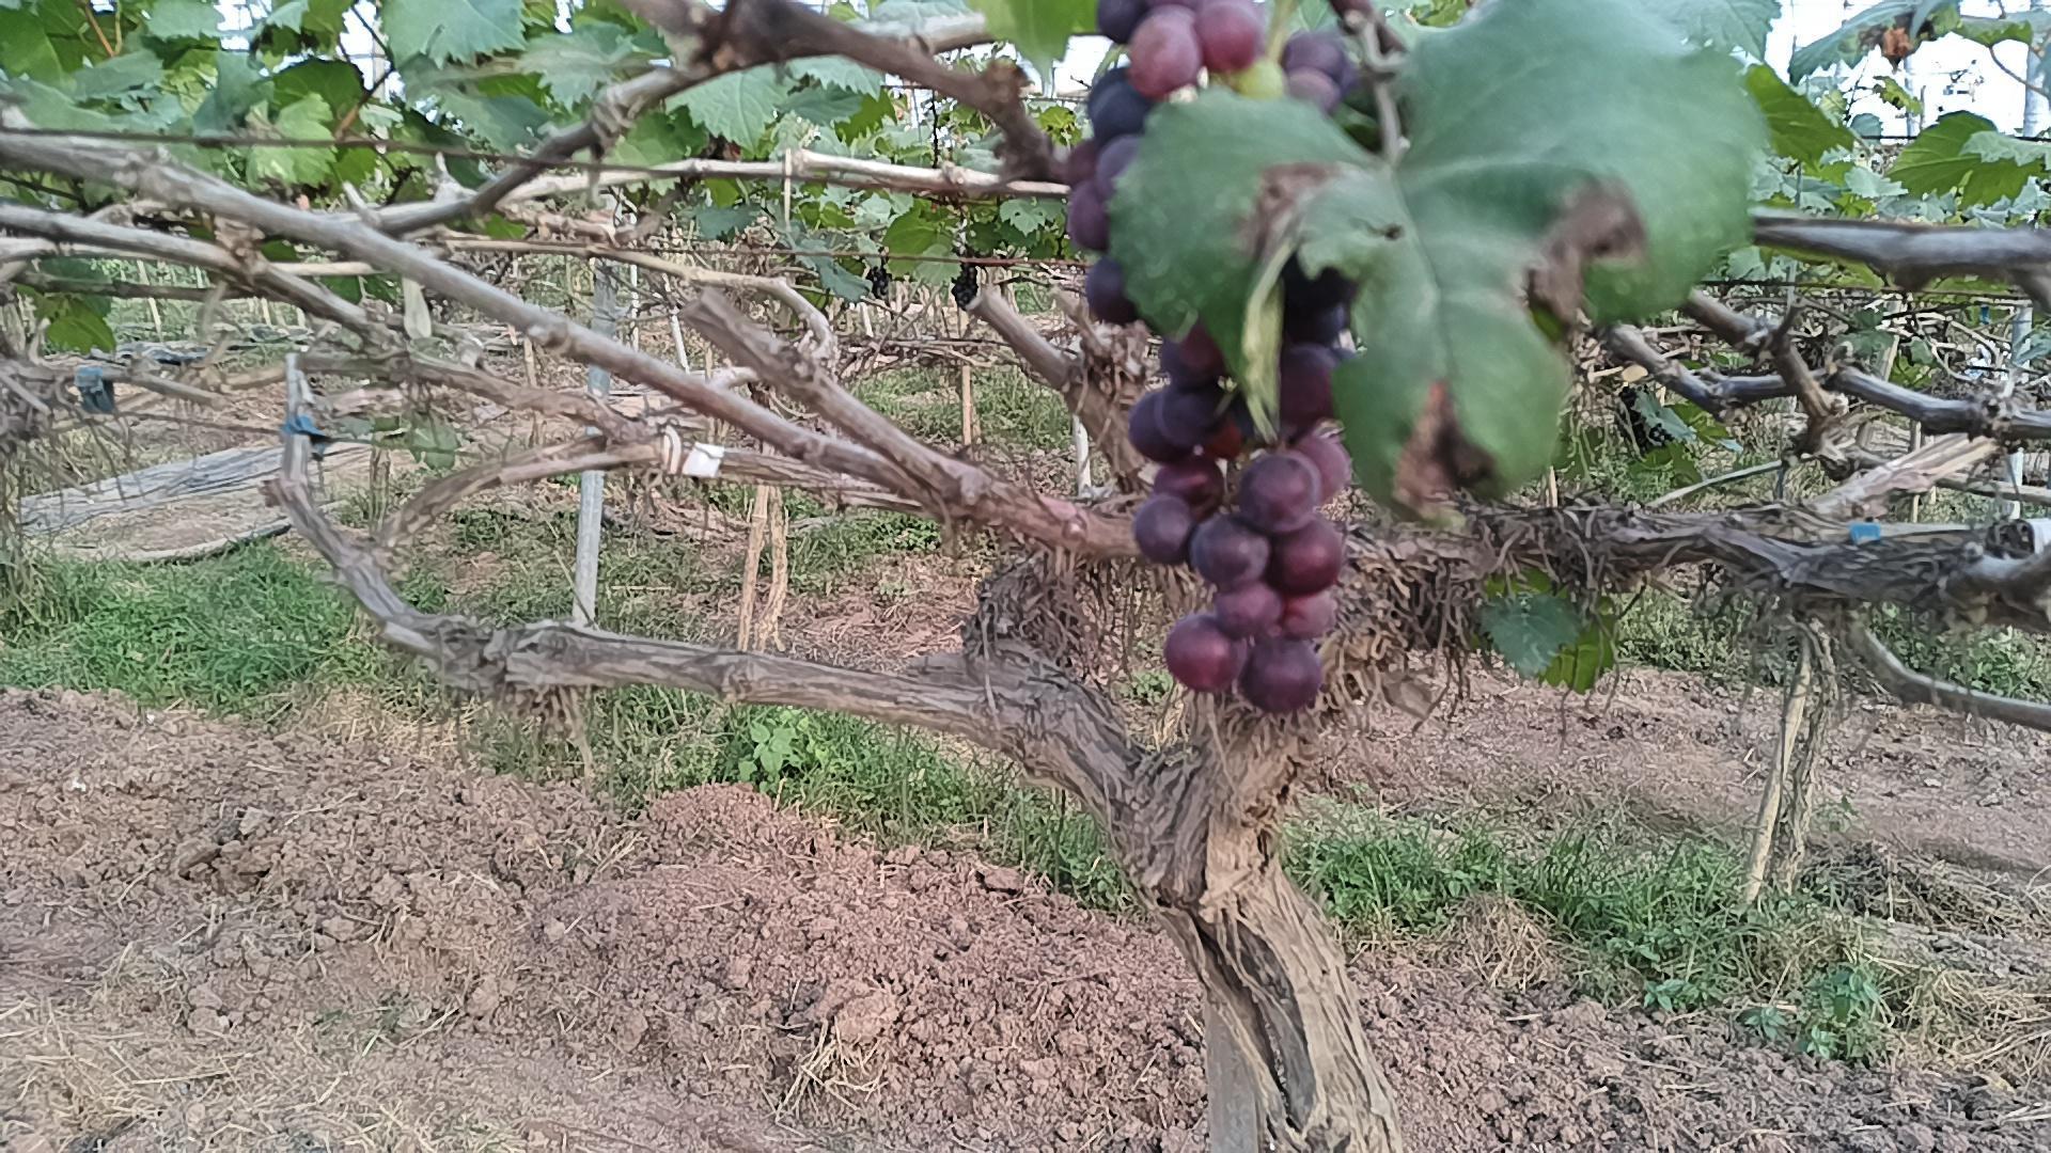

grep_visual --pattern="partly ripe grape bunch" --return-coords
[1060,0,1365,717]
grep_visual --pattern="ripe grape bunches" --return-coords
[864,257,894,303]
[951,262,980,311]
